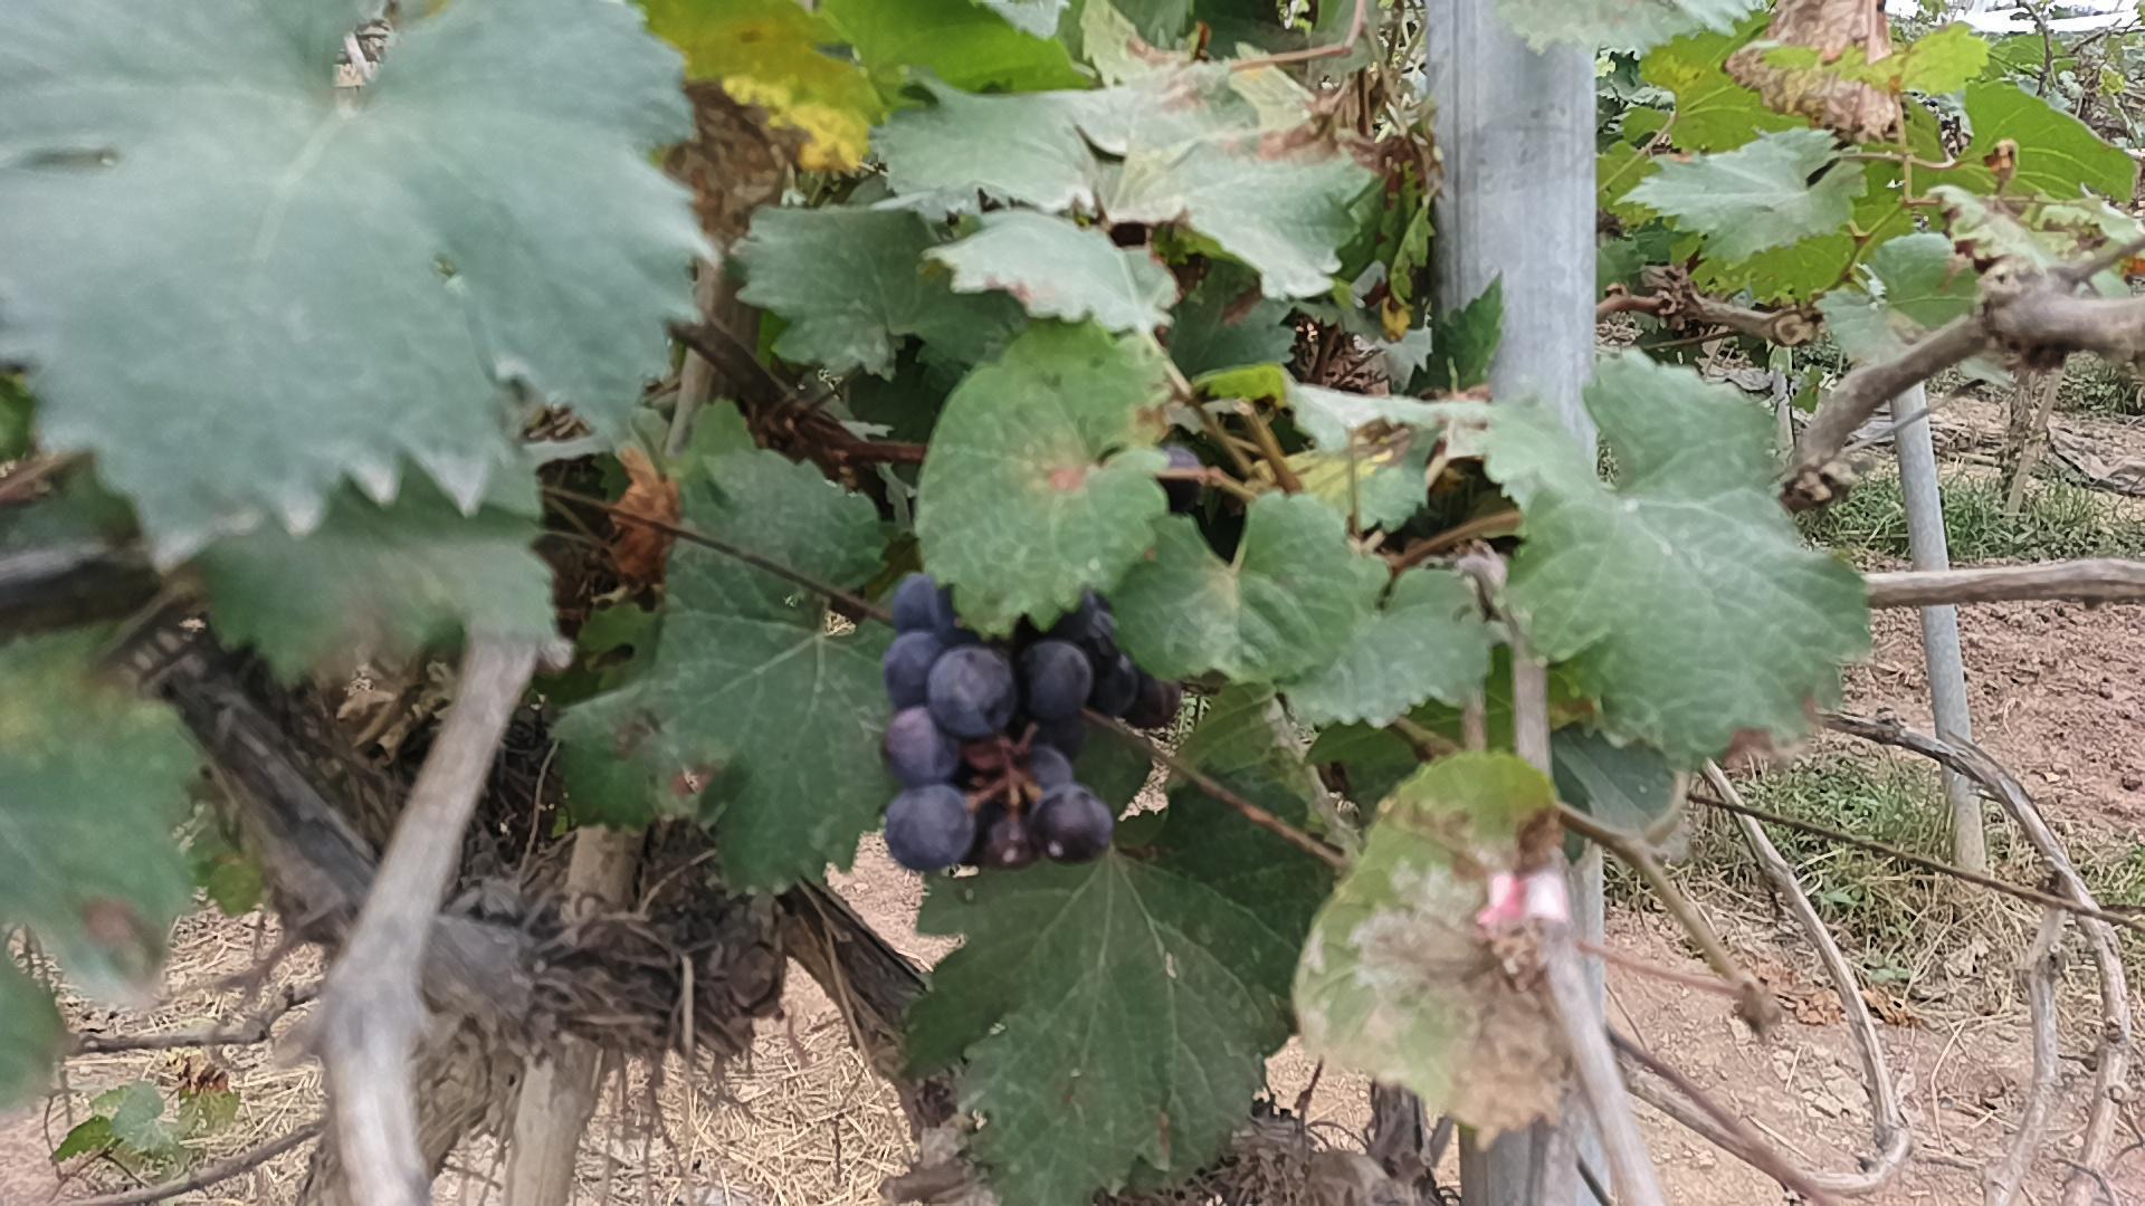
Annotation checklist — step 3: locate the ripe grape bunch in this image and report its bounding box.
[883,439,1201,871]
